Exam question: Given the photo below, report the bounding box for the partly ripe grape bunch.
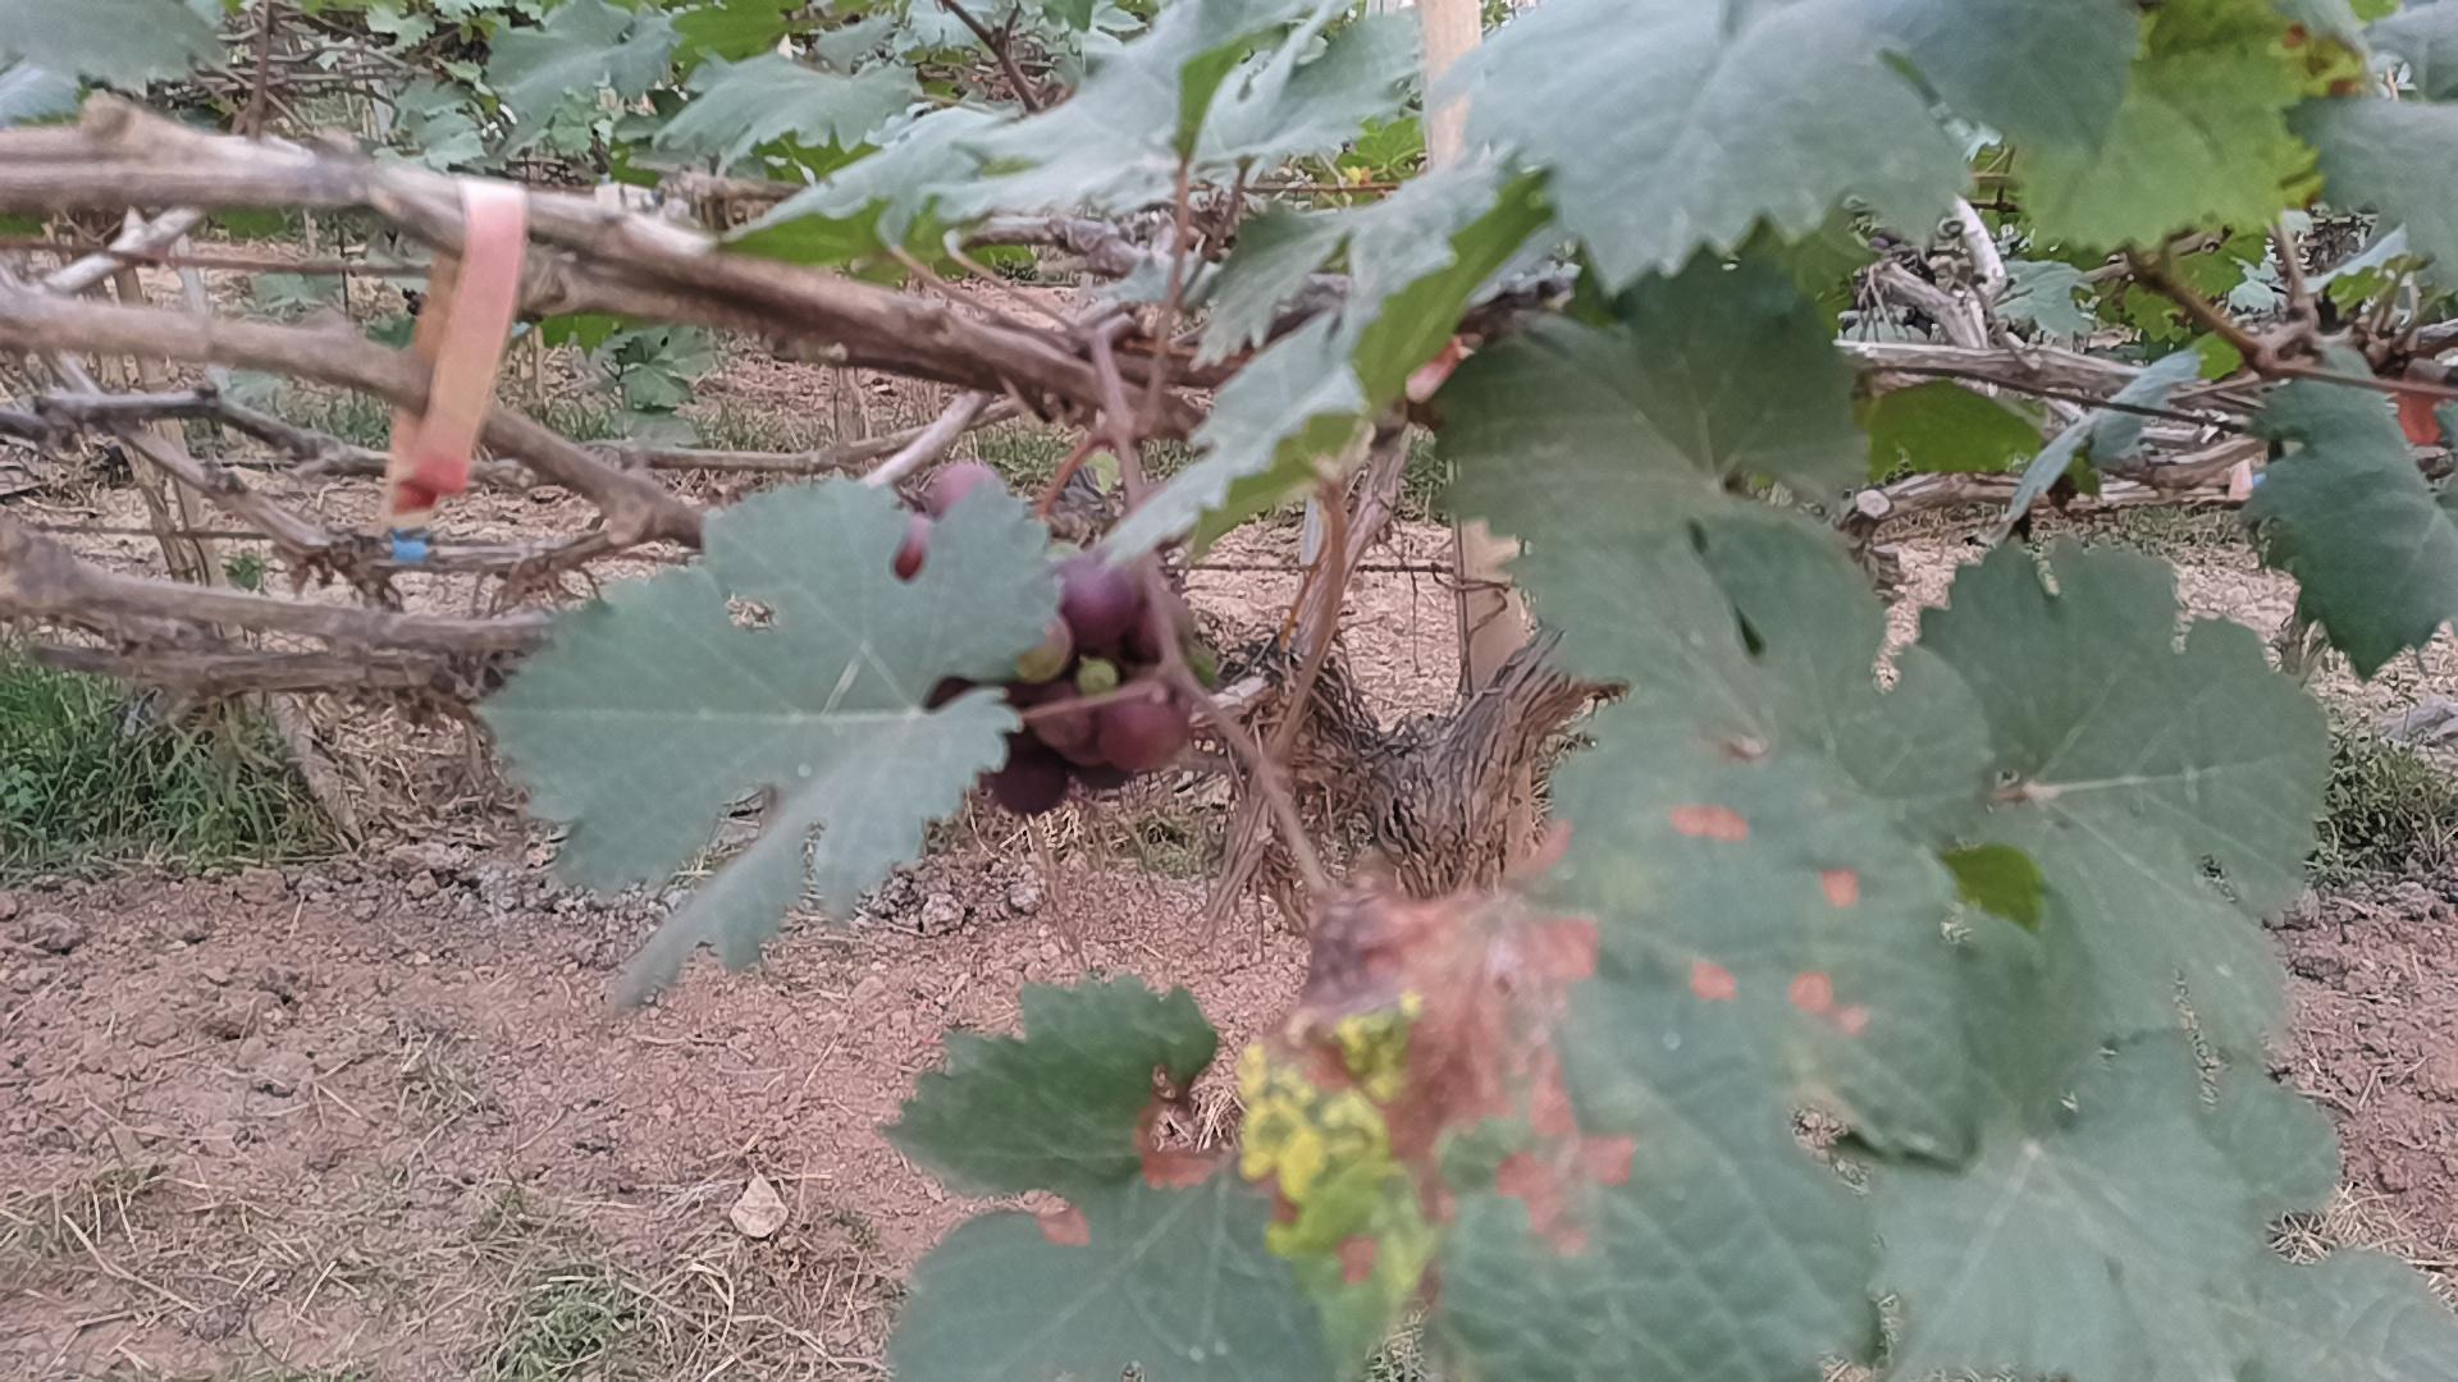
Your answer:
[895,462,1221,814]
